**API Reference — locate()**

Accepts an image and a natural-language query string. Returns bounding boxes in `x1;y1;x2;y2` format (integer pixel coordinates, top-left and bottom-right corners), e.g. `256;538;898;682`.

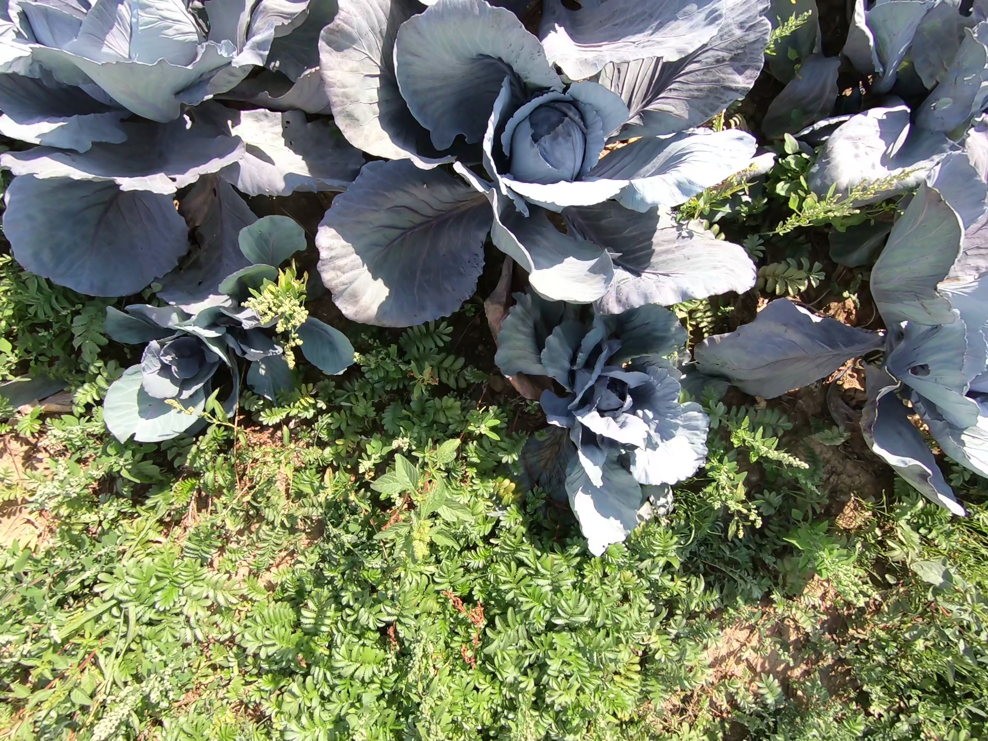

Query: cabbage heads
593;376;633;416
28;1;140;75
506;100;585;185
